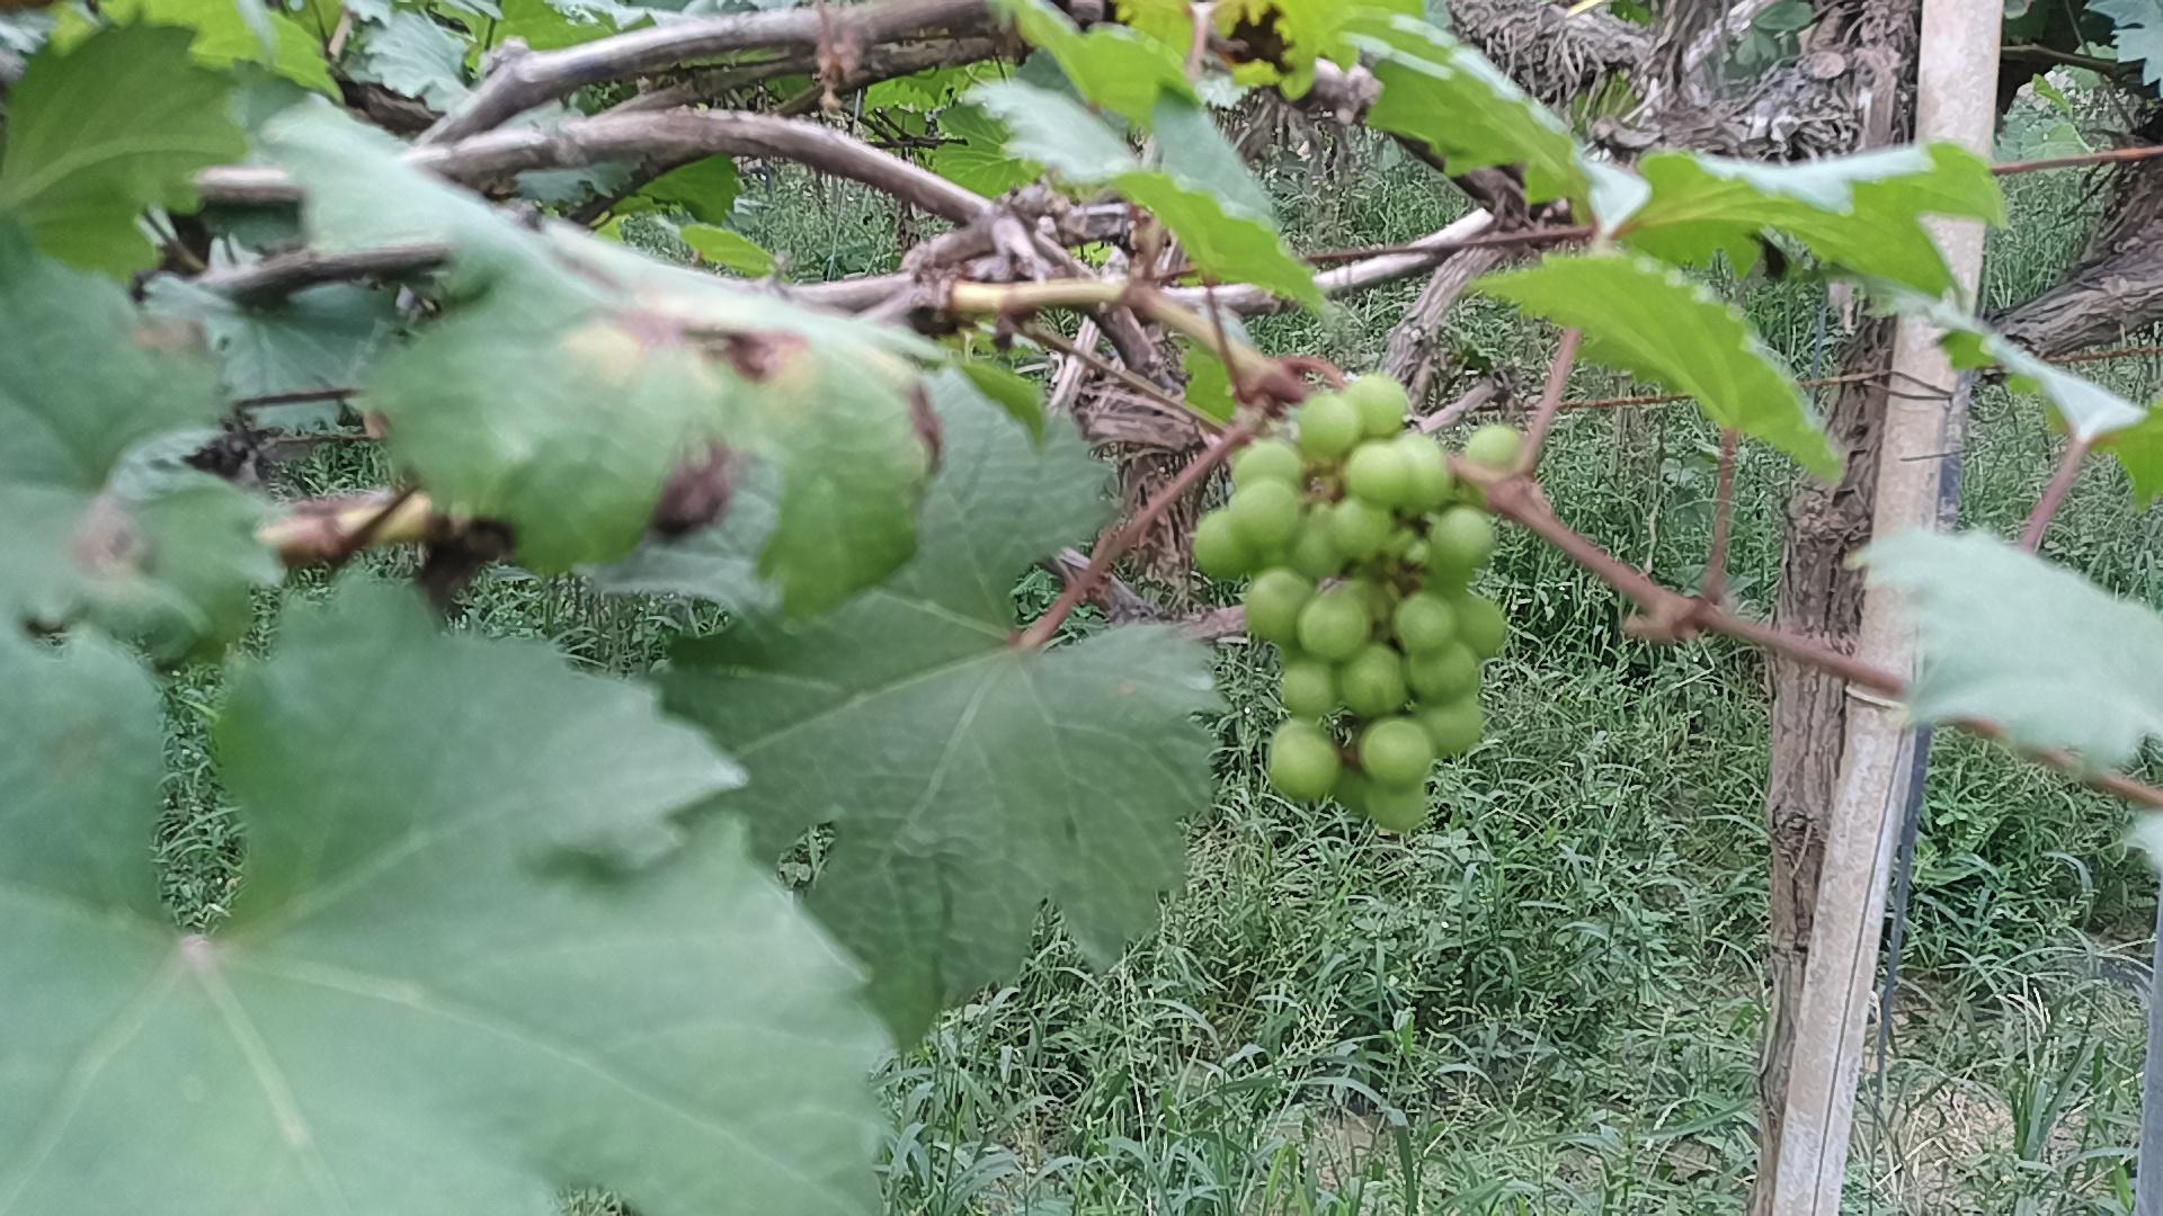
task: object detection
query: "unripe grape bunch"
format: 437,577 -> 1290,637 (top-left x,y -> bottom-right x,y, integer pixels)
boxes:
1193,374 -> 1505,830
